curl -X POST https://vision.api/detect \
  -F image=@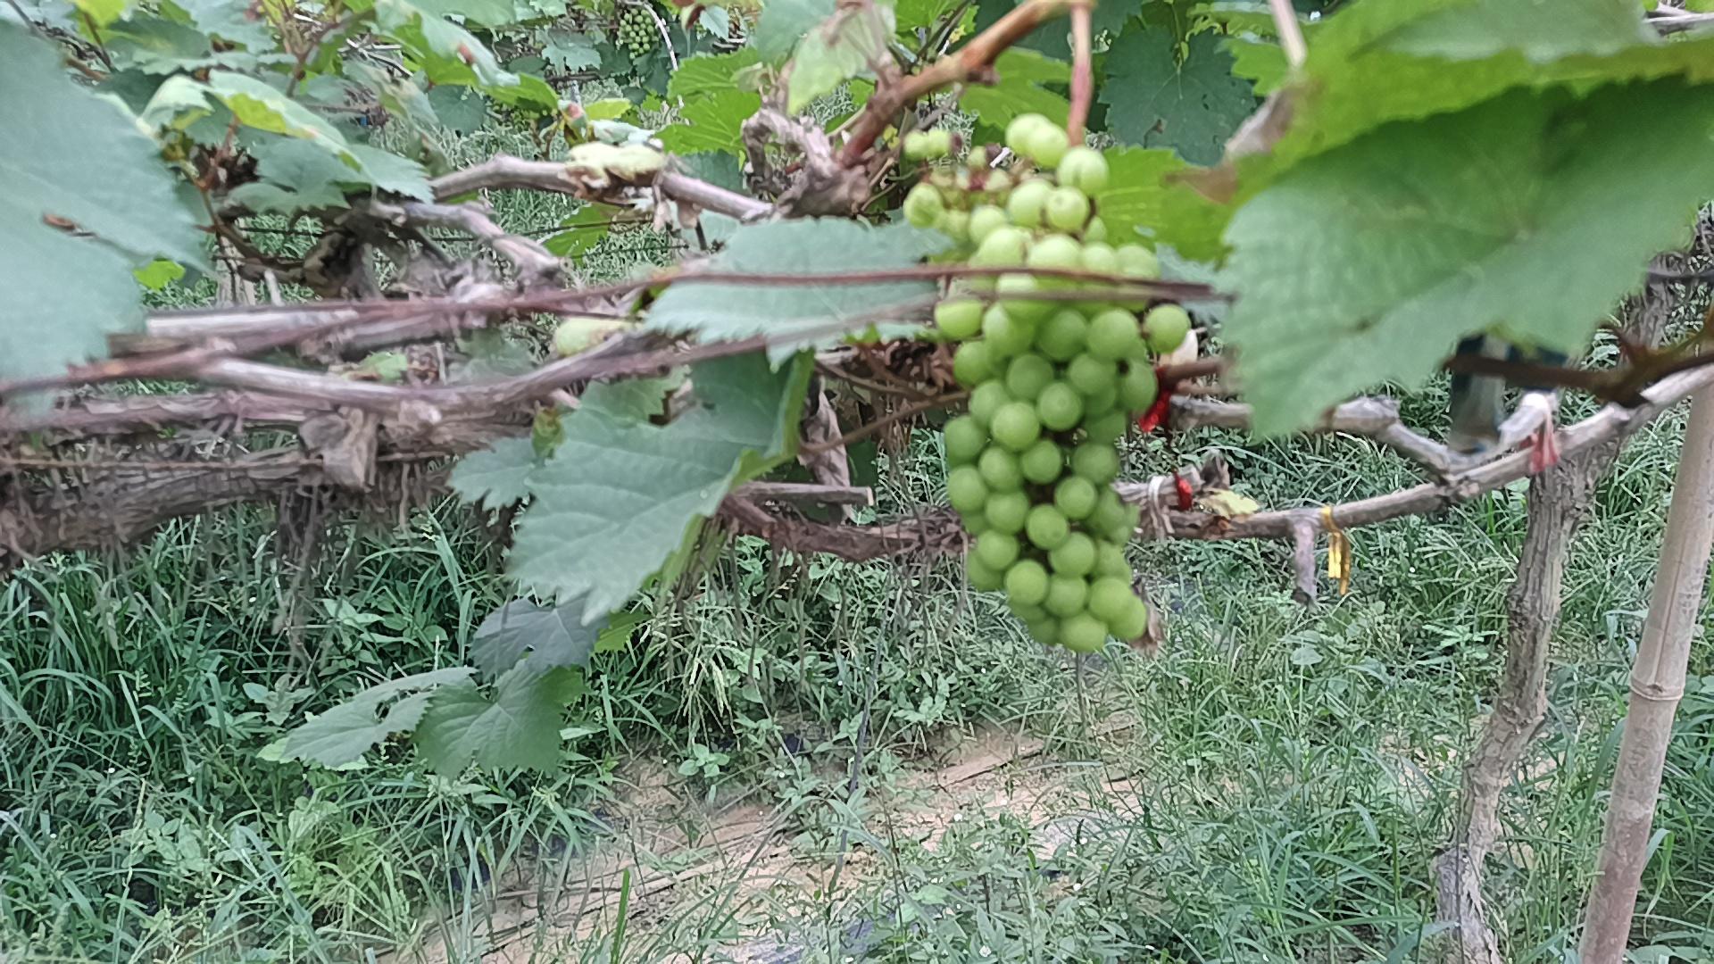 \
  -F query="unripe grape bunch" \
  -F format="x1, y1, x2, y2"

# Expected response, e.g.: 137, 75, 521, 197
903, 114, 1188, 652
